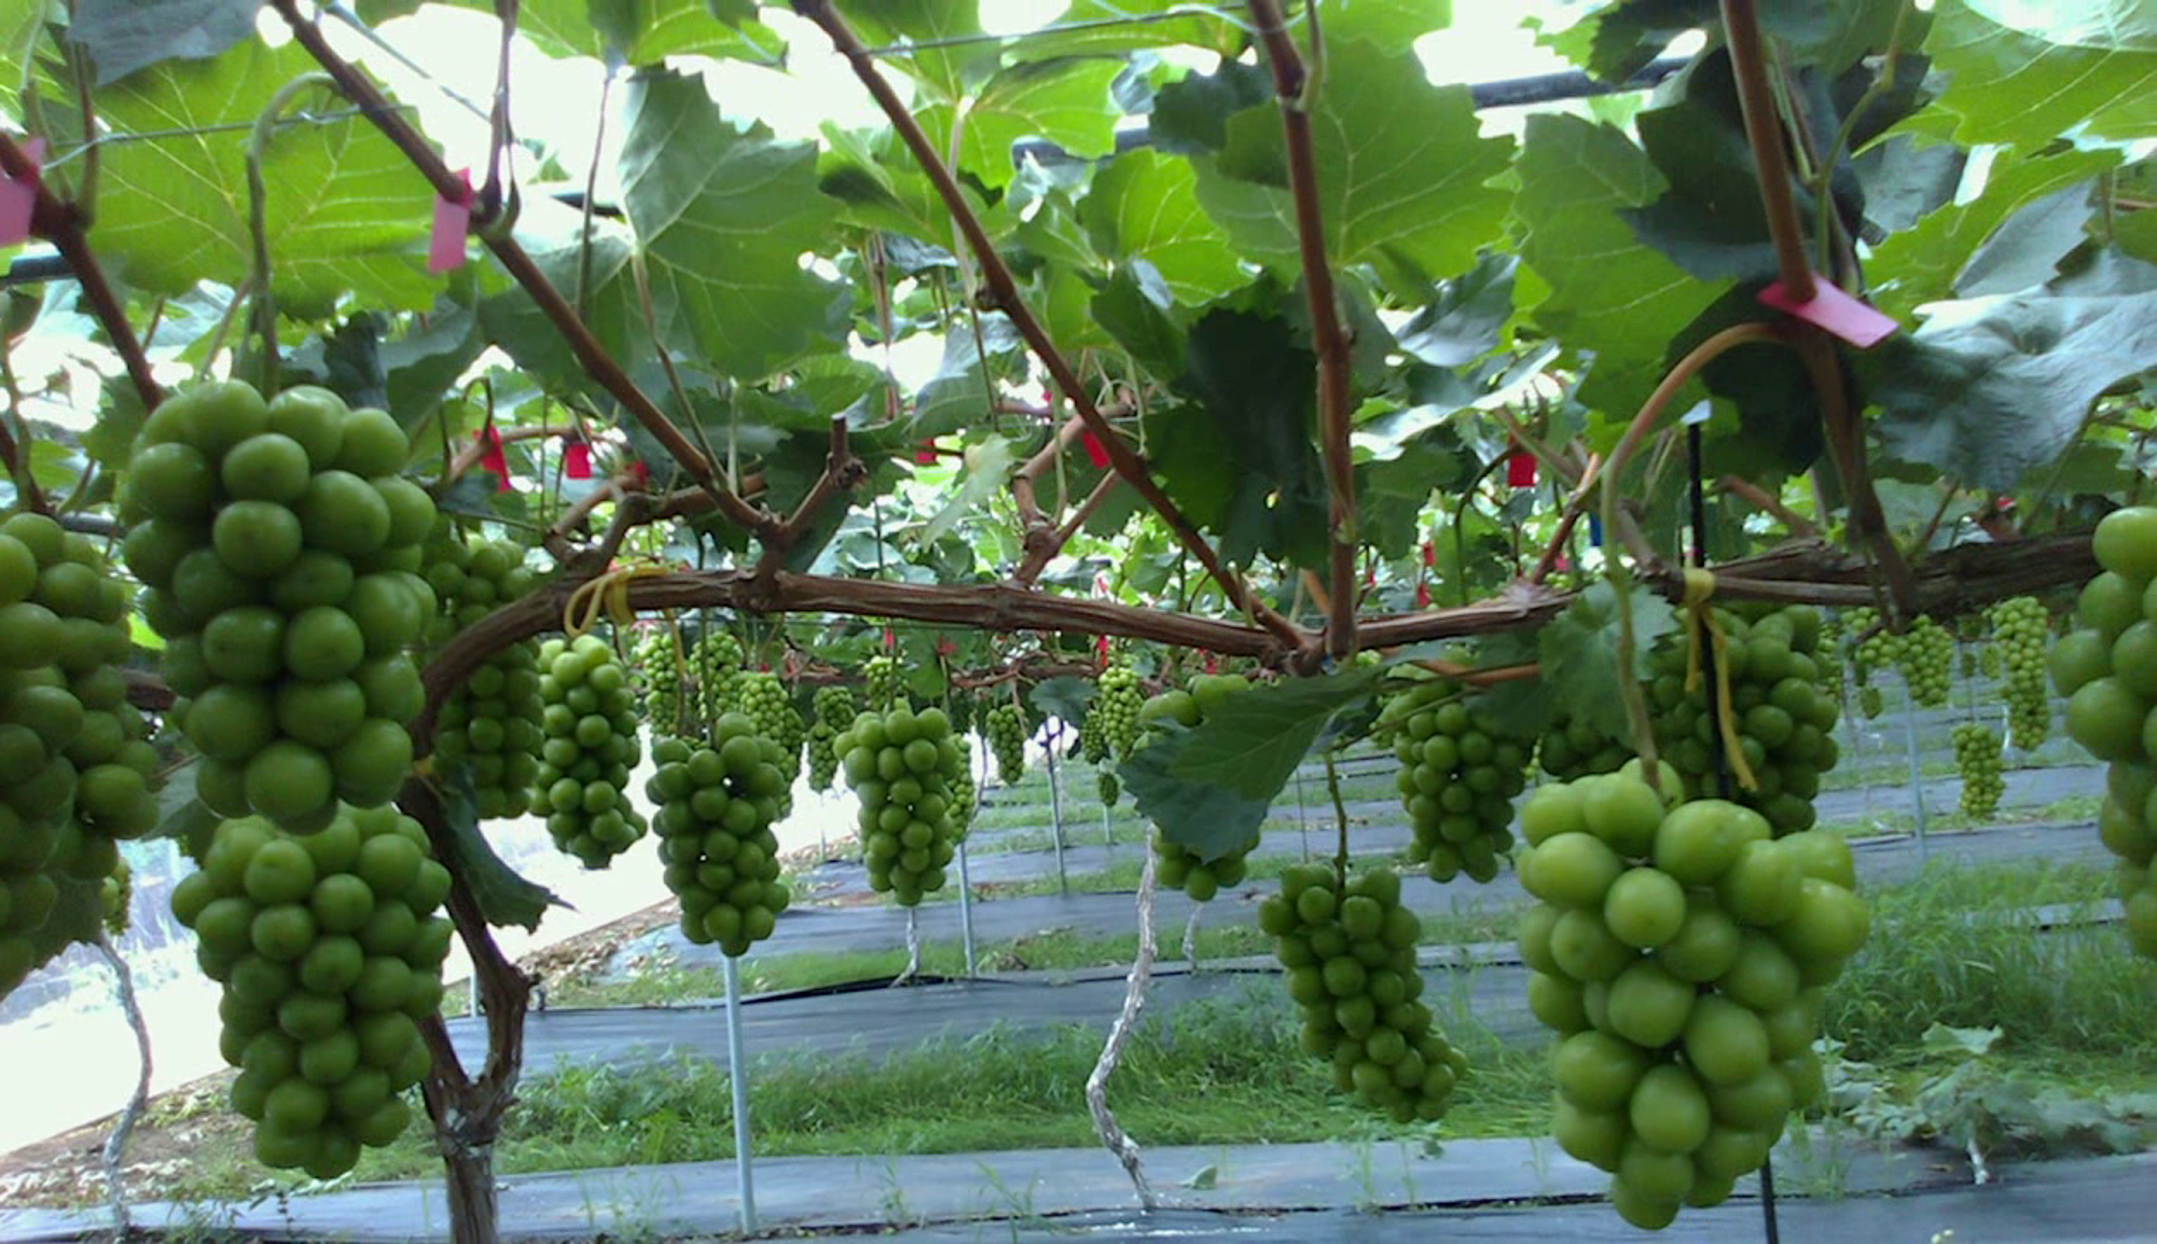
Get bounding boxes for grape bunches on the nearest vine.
[0,513,156,997]
[1516,758,1868,1230]
[2052,506,2155,940]
[171,805,453,1180]
[121,380,437,836]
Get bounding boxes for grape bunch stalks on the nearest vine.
[1594,325,1791,784]
[247,71,334,401]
